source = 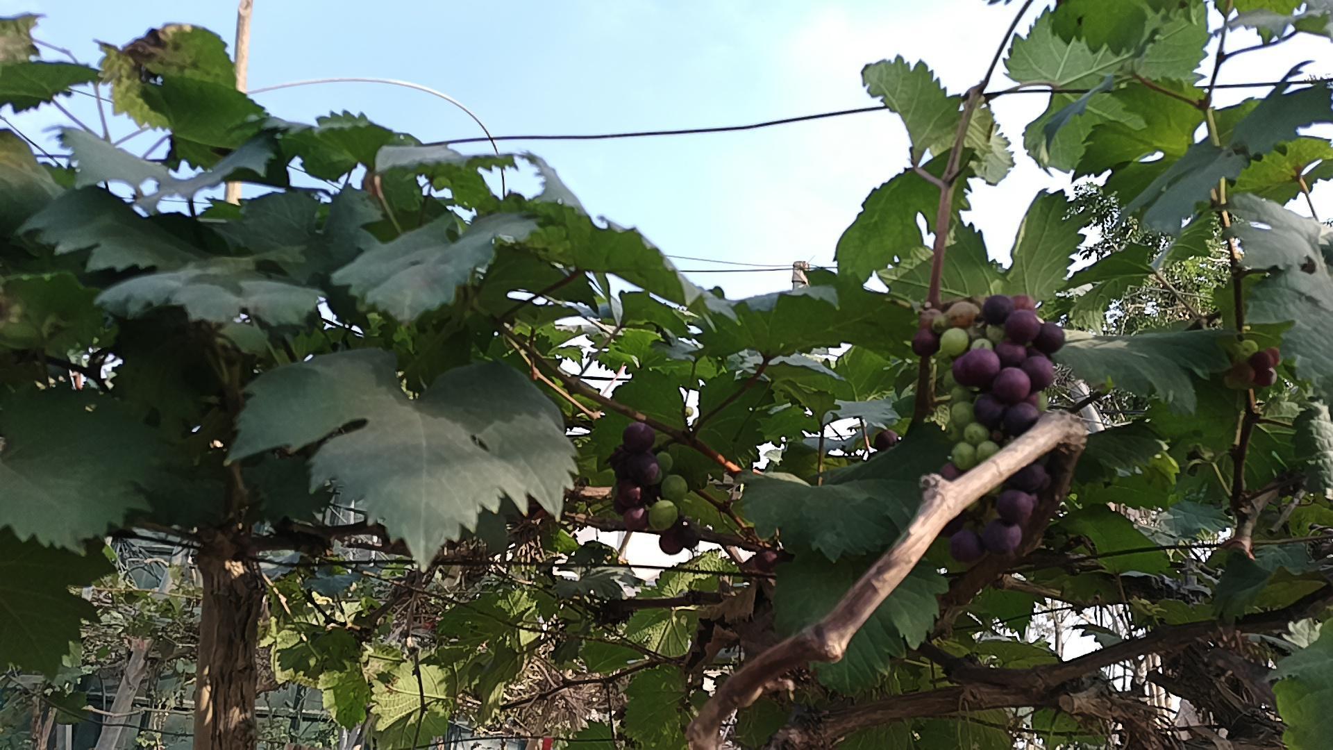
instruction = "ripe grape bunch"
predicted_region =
[866,429,899,461]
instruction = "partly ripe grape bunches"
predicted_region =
[607,422,701,555]
[1223,340,1280,390]
[912,293,1064,563]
